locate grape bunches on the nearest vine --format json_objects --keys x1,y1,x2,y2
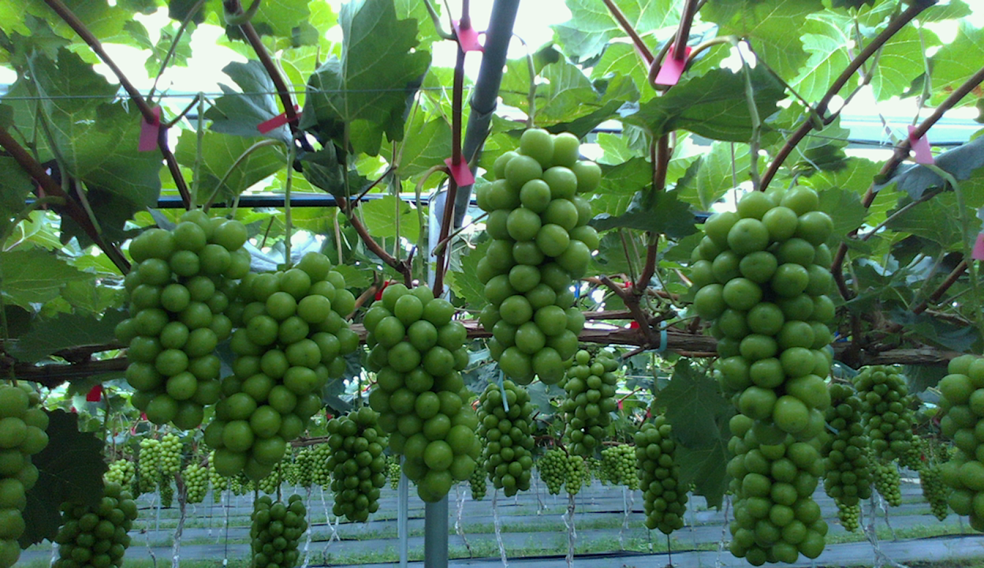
[
  {"x1": 114, "y1": 210, "x2": 251, "y2": 429},
  {"x1": 363, "y1": 283, "x2": 483, "y2": 506},
  {"x1": 941, "y1": 355, "x2": 982, "y2": 533},
  {"x1": 475, "y1": 129, "x2": 601, "y2": 388},
  {"x1": 0, "y1": 383, "x2": 49, "y2": 567},
  {"x1": 691, "y1": 185, "x2": 836, "y2": 446},
  {"x1": 726, "y1": 414, "x2": 829, "y2": 564},
  {"x1": 203, "y1": 252, "x2": 360, "y2": 484}
]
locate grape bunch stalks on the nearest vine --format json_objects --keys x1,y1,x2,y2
[
  {"x1": 168, "y1": 92, "x2": 228, "y2": 208},
  {"x1": 284, "y1": 156, "x2": 294, "y2": 270},
  {"x1": 928, "y1": 163, "x2": 983, "y2": 330},
  {"x1": 415, "y1": 165, "x2": 448, "y2": 284},
  {"x1": 514, "y1": 33, "x2": 536, "y2": 128},
  {"x1": 690, "y1": 37, "x2": 762, "y2": 189}
]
